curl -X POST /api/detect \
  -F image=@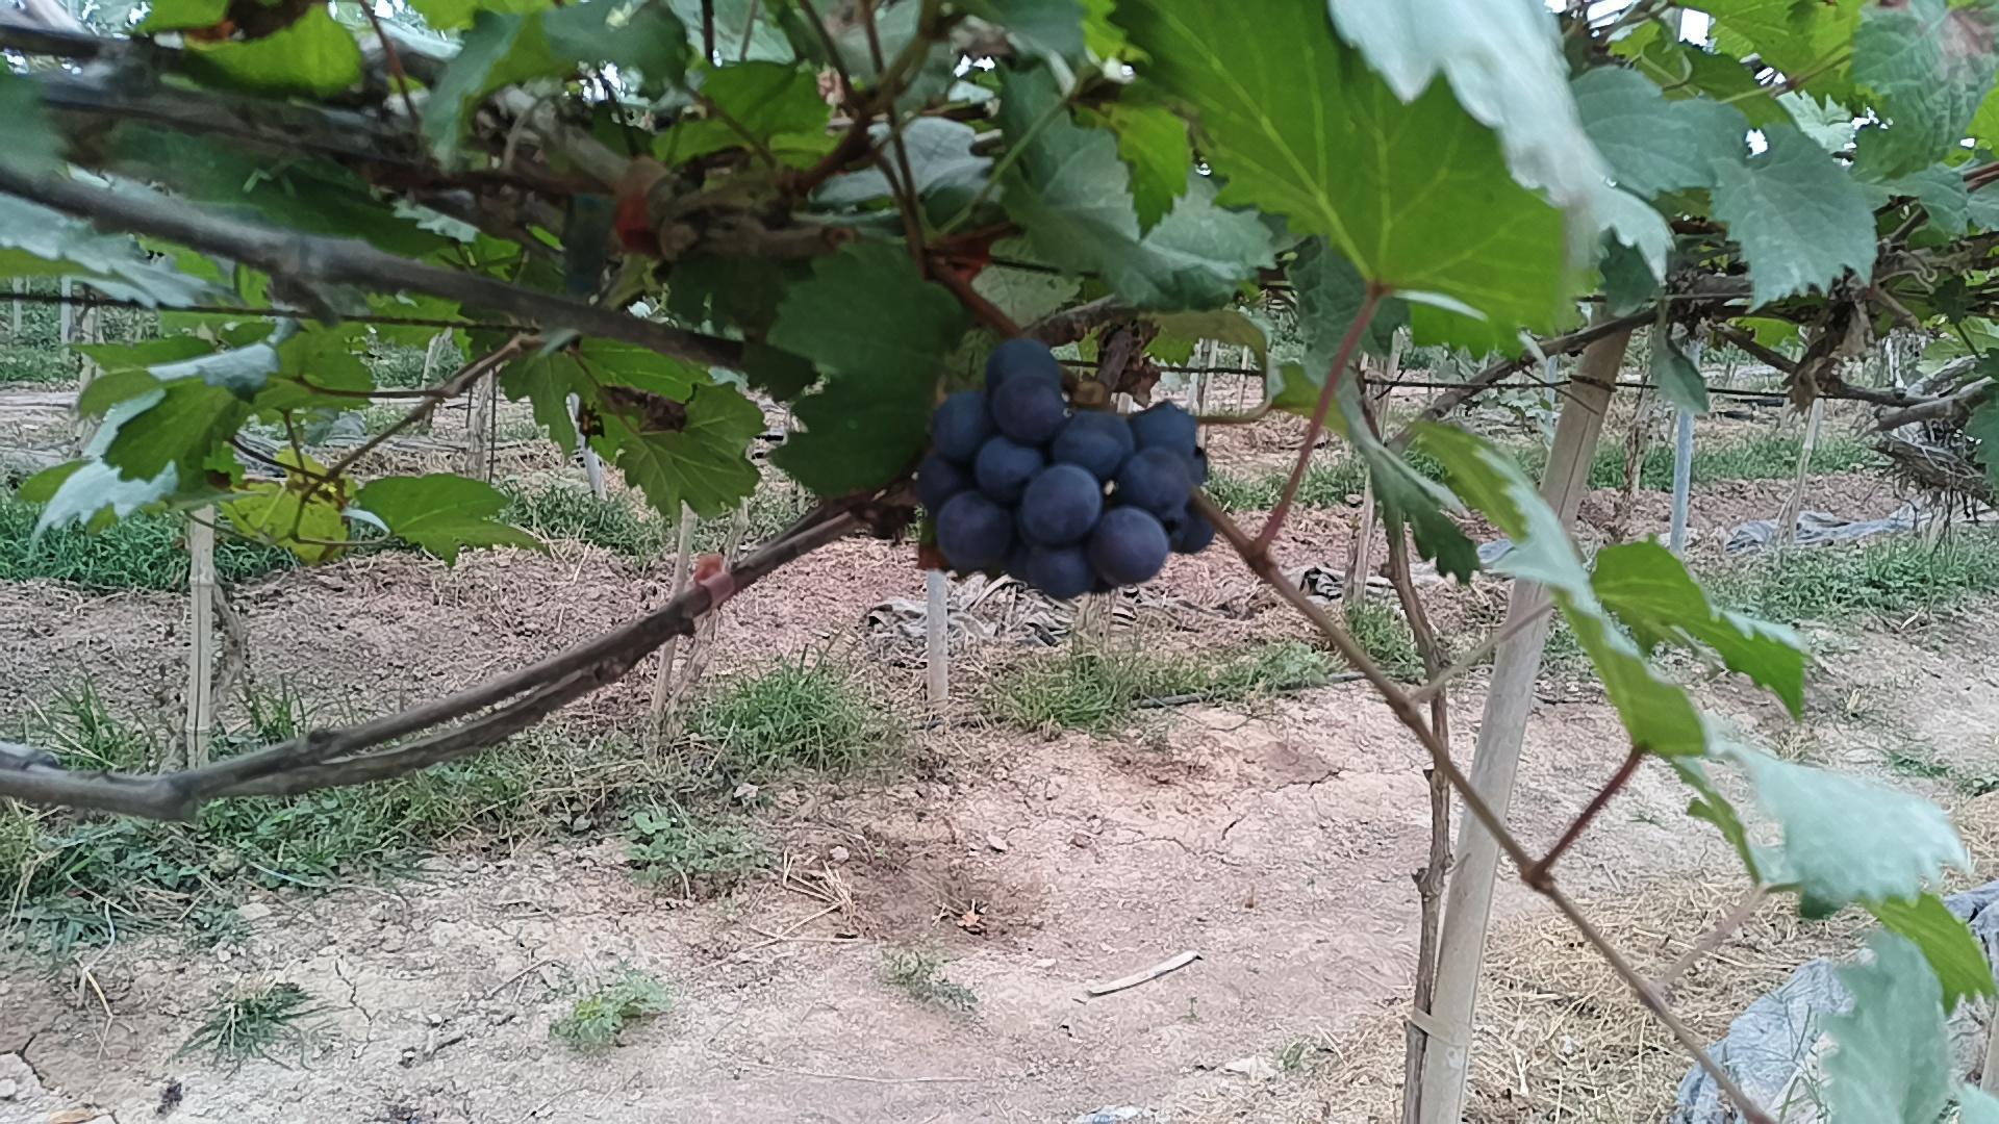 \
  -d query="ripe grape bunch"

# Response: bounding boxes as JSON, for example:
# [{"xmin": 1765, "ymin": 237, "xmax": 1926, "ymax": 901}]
[{"xmin": 916, "ymin": 339, "xmax": 1214, "ymax": 599}]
